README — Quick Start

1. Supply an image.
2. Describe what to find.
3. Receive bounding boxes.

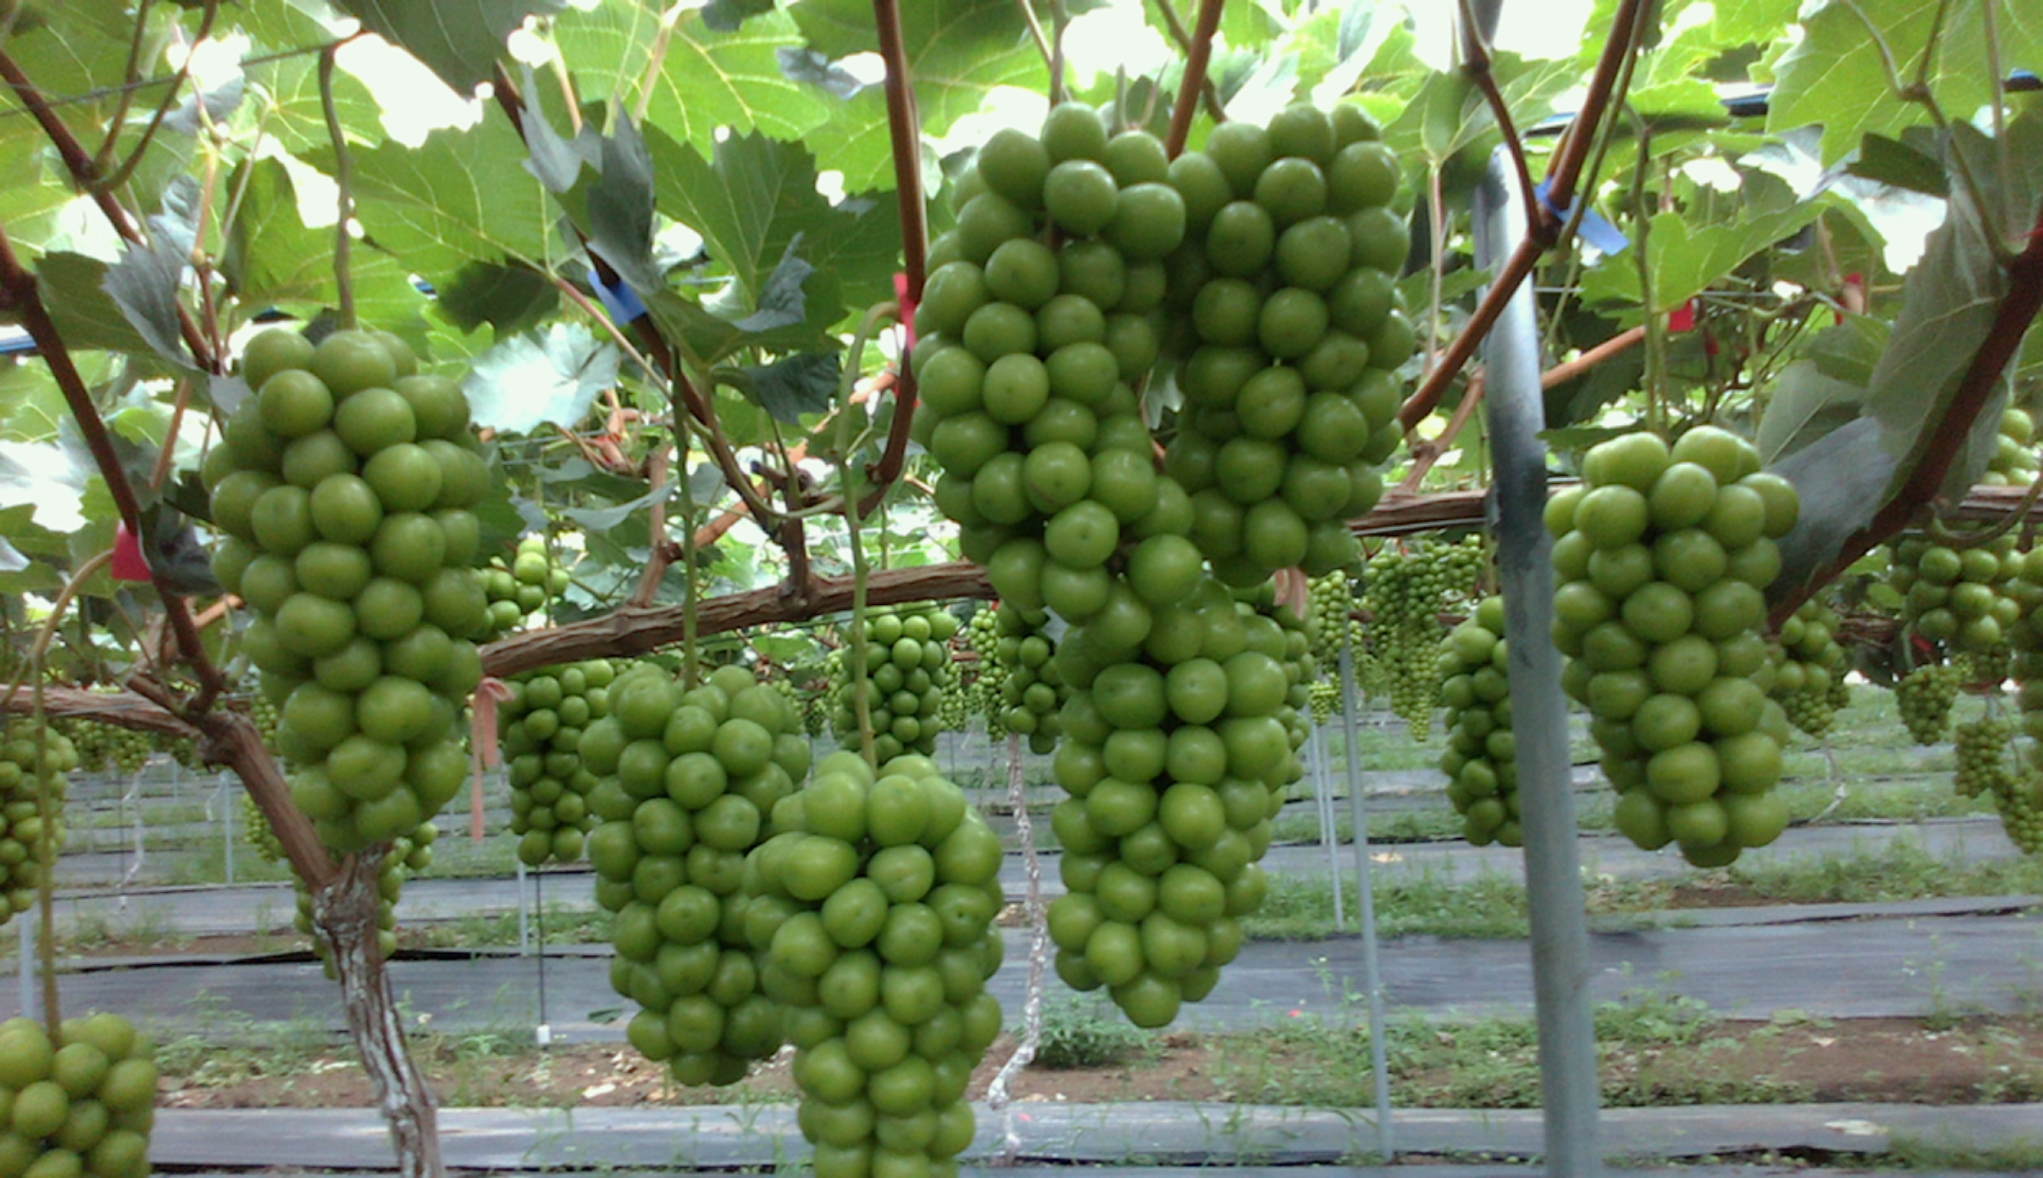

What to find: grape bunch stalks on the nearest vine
[835,301,902,772]
[670,344,697,692]
[1621,100,1660,438]
[316,25,377,329]
[29,548,110,1049]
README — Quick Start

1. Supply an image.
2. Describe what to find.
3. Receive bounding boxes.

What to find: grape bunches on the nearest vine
[742,749,1003,1176]
[0,1013,157,1176]
[198,324,493,851]
[578,664,812,1088]
[1544,425,1799,867]
[1159,103,1414,587]
[909,101,1202,648]
[1046,571,1292,1026]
